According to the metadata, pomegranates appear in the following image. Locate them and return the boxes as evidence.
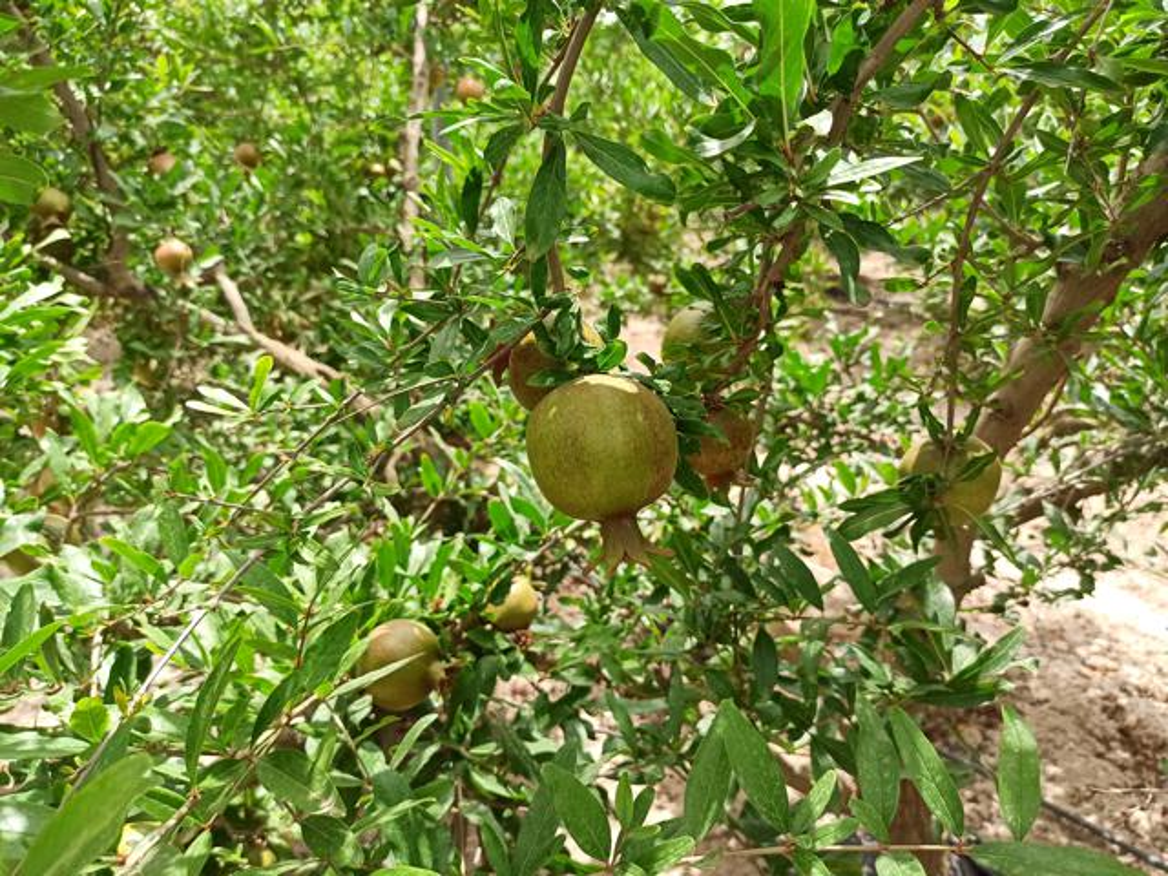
[354,619,469,712]
[524,372,679,579]
[684,403,754,489]
[454,77,484,106]
[898,434,1000,526]
[232,141,261,170]
[31,188,71,230]
[482,582,540,633]
[662,299,714,363]
[153,237,193,290]
[507,318,606,411]
[146,153,175,175]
